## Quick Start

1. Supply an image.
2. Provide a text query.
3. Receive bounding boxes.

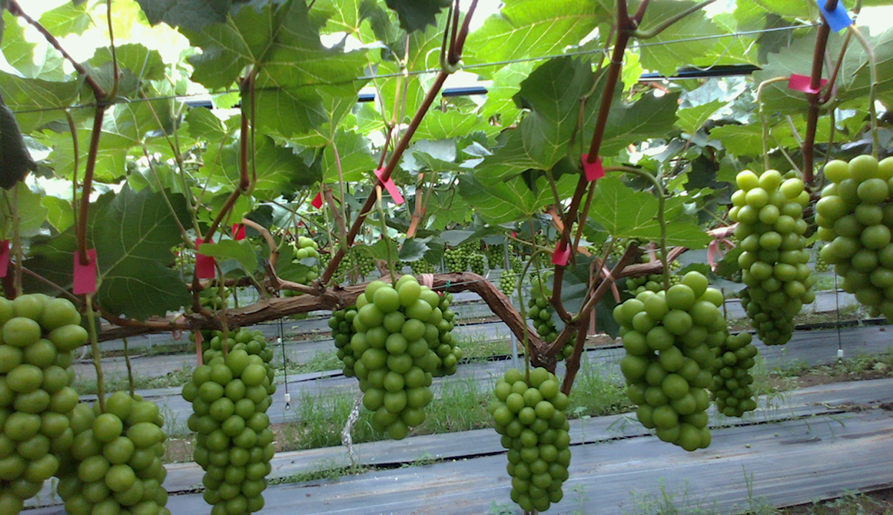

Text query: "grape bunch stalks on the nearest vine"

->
[376,185,396,288]
[517,248,554,388]
[756,77,791,171]
[215,260,227,357]
[603,167,670,292]
[4,190,21,298]
[86,293,106,414]
[848,25,879,160]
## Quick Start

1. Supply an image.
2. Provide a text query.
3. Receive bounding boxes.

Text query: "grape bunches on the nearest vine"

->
[182,349,275,514]
[54,391,170,514]
[613,271,726,451]
[488,367,571,513]
[351,275,444,441]
[0,293,87,514]
[816,155,892,320]
[728,170,815,315]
